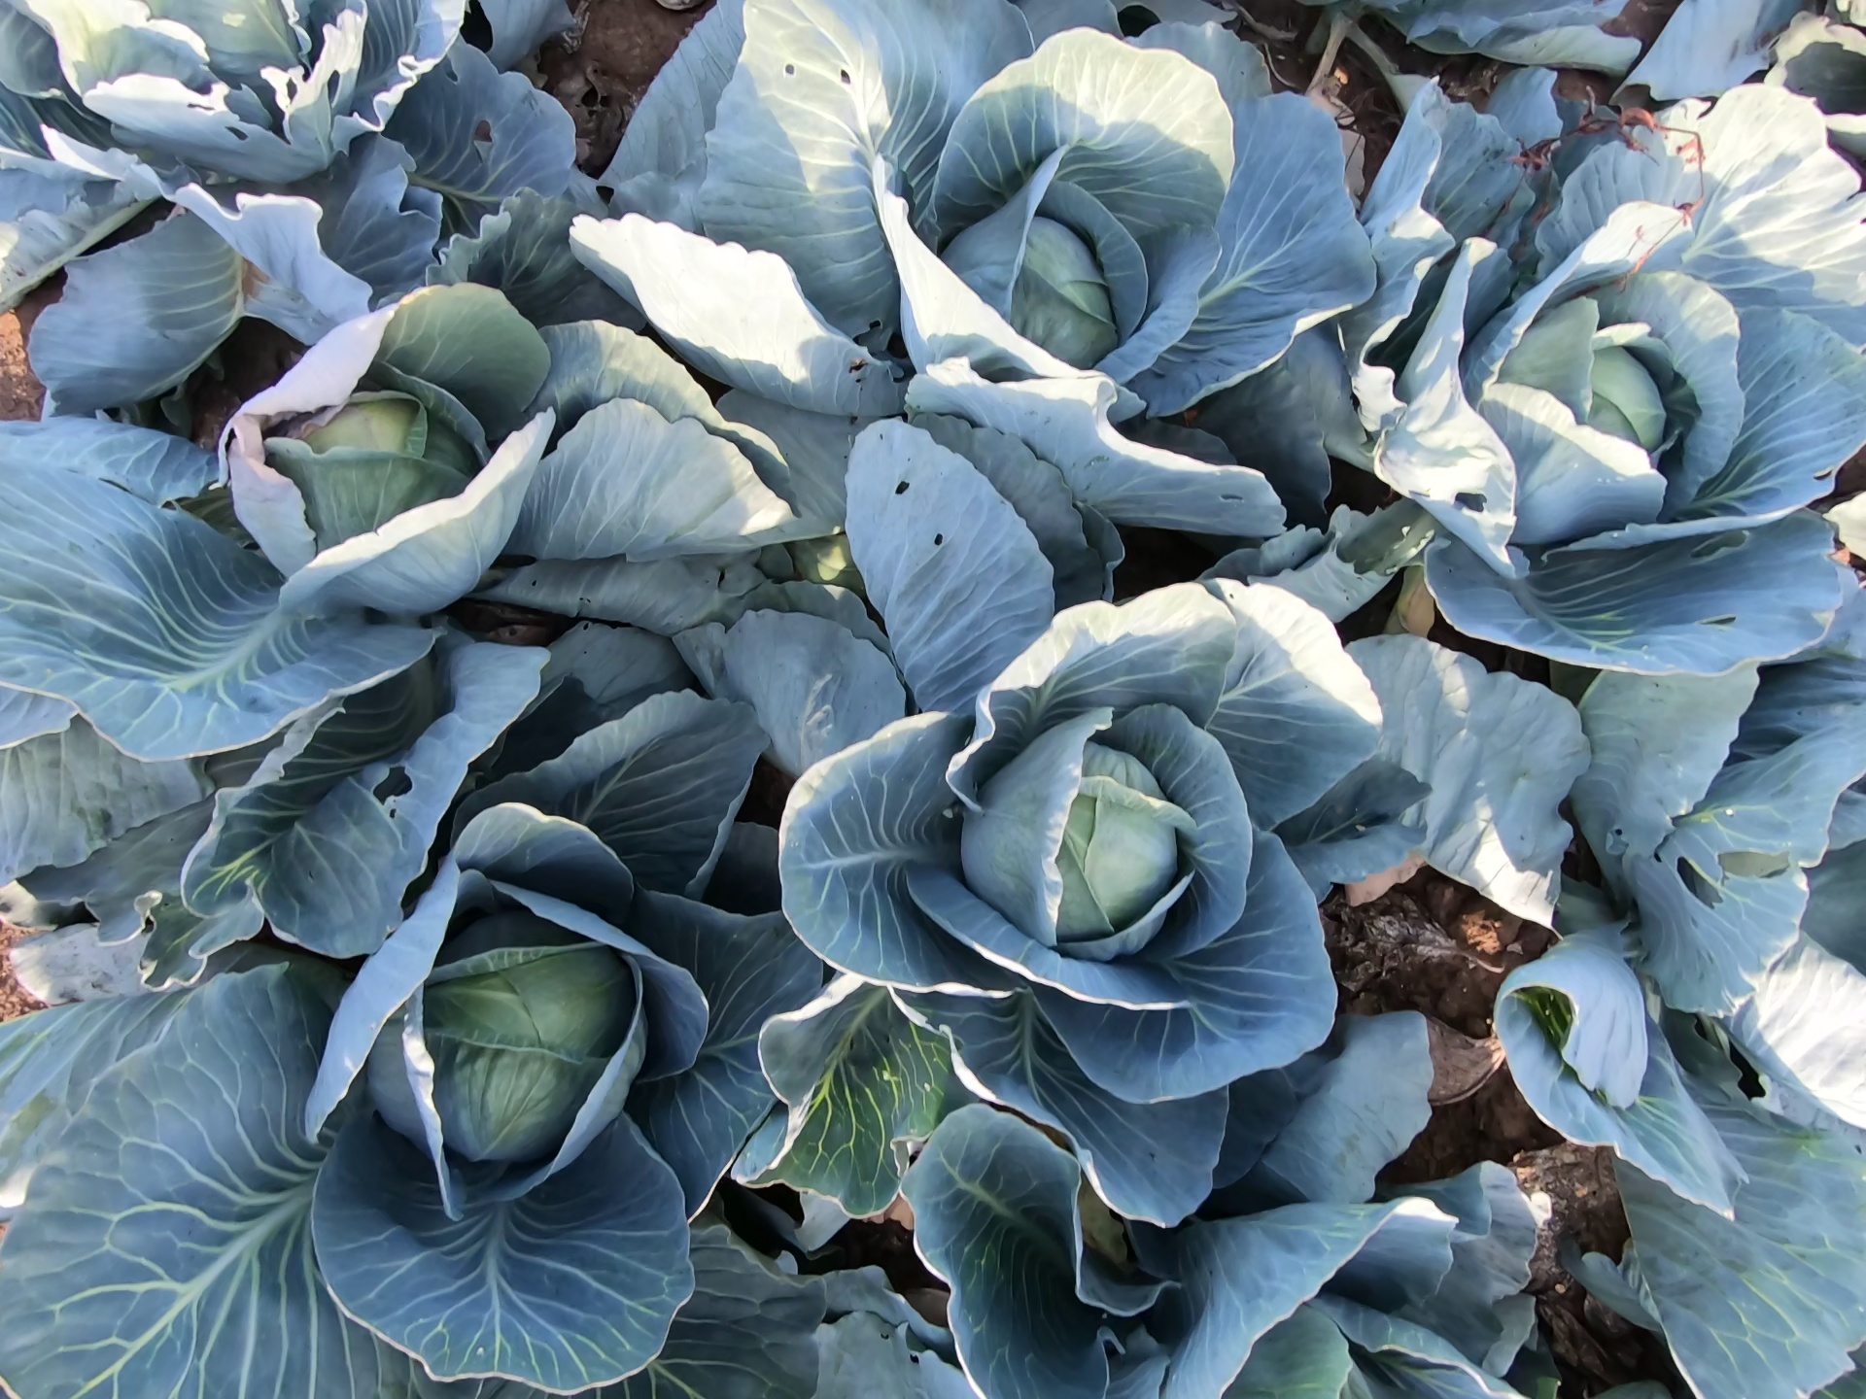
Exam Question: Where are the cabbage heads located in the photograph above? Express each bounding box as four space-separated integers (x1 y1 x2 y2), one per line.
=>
1499 333 1667 509
278 392 482 578
380 909 642 1160
71 5 303 107
972 741 1175 943
928 214 1119 392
